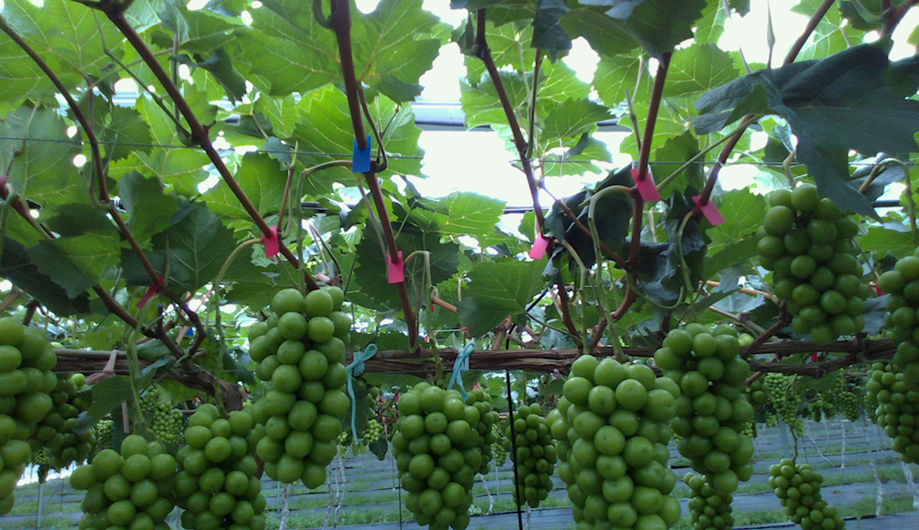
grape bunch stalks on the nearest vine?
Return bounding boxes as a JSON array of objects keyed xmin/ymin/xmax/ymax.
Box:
[
  {"xmin": 588, "ymin": 185, "xmax": 633, "ymax": 363},
  {"xmin": 404, "ymin": 250, "xmax": 443, "ymax": 387},
  {"xmin": 878, "ymin": 158, "xmax": 918, "ymax": 245},
  {"xmin": 782, "ymin": 149, "xmax": 797, "ymax": 190},
  {"xmin": 214, "ymin": 238, "xmax": 263, "ymax": 419},
  {"xmin": 675, "ymin": 206, "xmax": 698, "ymax": 322},
  {"xmin": 129, "ymin": 293, "xmax": 160, "ymax": 435},
  {"xmin": 296, "ymin": 160, "xmax": 353, "ymax": 297}
]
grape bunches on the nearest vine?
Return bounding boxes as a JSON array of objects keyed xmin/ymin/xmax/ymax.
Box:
[
  {"xmin": 390, "ymin": 381, "xmax": 483, "ymax": 529},
  {"xmin": 242, "ymin": 285, "xmax": 353, "ymax": 489},
  {"xmin": 68, "ymin": 434, "xmax": 176, "ymax": 529},
  {"xmin": 171, "ymin": 403, "xmax": 267, "ymax": 529},
  {"xmin": 1, "ymin": 317, "xmax": 57, "ymax": 516},
  {"xmin": 653, "ymin": 322, "xmax": 754, "ymax": 495},
  {"xmin": 545, "ymin": 354, "xmax": 681, "ymax": 529},
  {"xmin": 755, "ymin": 183, "xmax": 867, "ymax": 346},
  {"xmin": 878, "ymin": 247, "xmax": 918, "ymax": 394}
]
